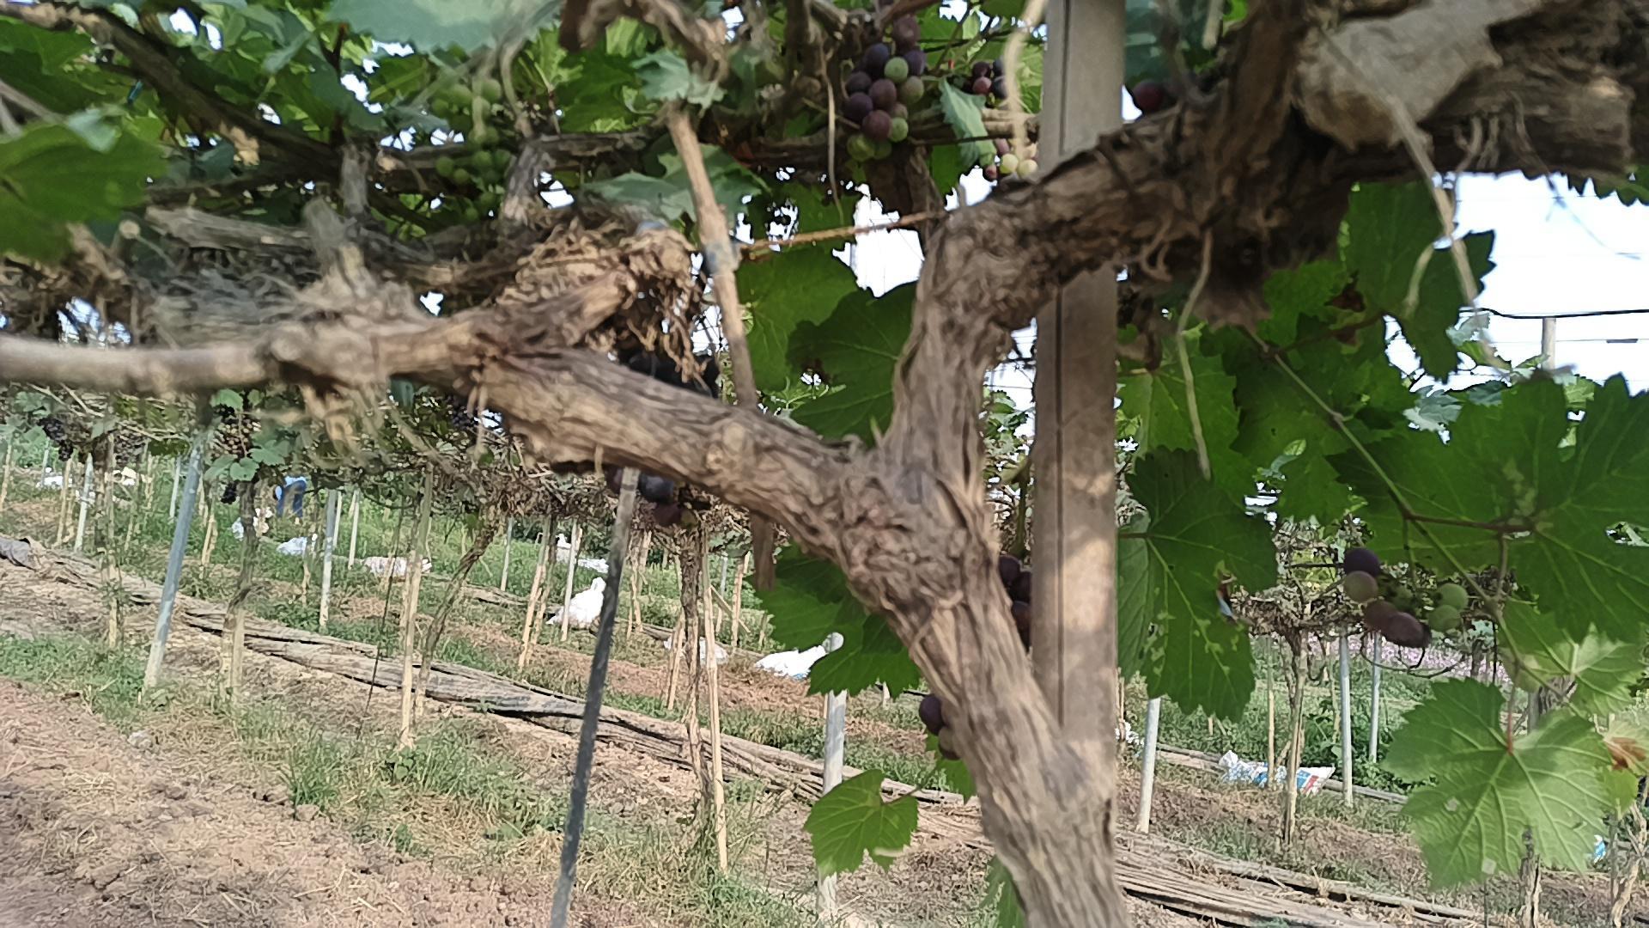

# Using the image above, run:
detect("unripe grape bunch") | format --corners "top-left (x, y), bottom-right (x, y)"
top-left (432, 74), bottom-right (513, 223)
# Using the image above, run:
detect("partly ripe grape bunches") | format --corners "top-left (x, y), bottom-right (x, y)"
top-left (603, 299), bottom-right (718, 528)
top-left (1342, 548), bottom-right (1468, 647)
top-left (965, 46), bottom-right (1037, 180)
top-left (918, 553), bottom-right (1031, 760)
top-left (839, 14), bottom-right (926, 154)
